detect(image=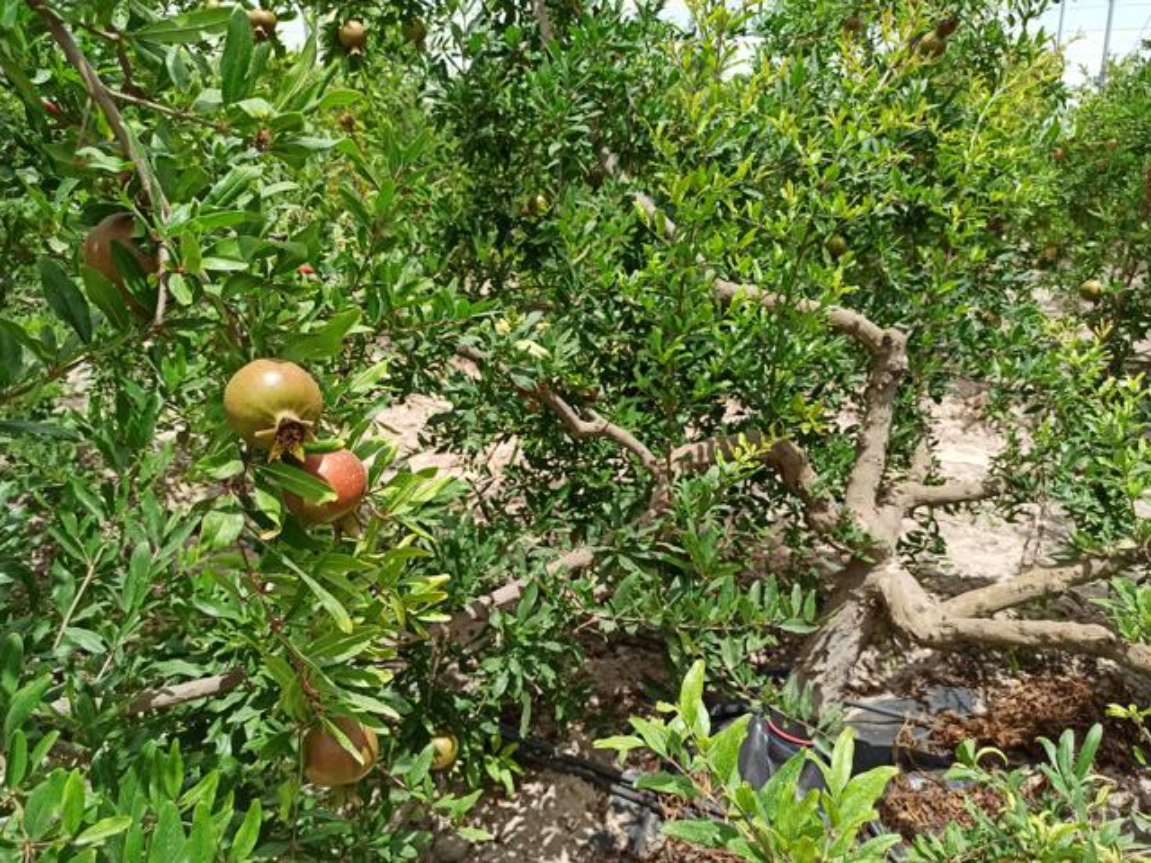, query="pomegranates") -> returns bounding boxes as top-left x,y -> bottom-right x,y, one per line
336,20 -> 365,56
304,717 -> 379,811
246,9 -> 277,40
428,734 -> 466,780
223,356 -> 322,464
85,210 -> 160,306
403,18 -> 426,47
1077,279 -> 1102,306
282,446 -> 369,539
